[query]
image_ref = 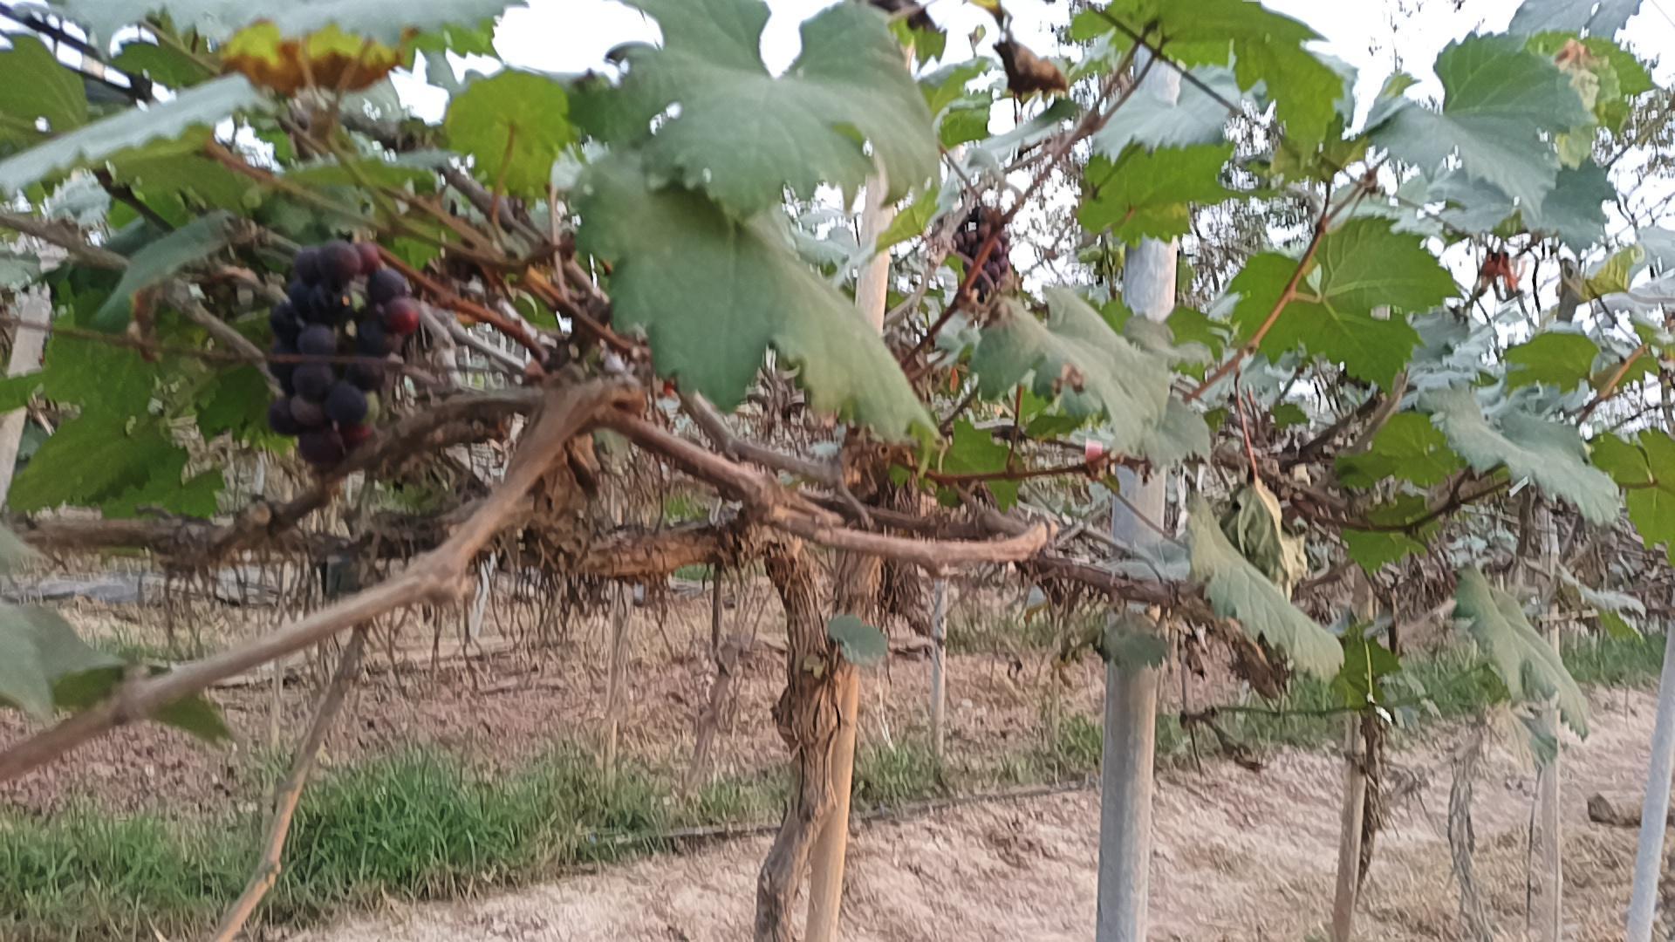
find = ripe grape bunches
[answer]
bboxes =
[952,206,1014,296]
[268,241,418,468]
